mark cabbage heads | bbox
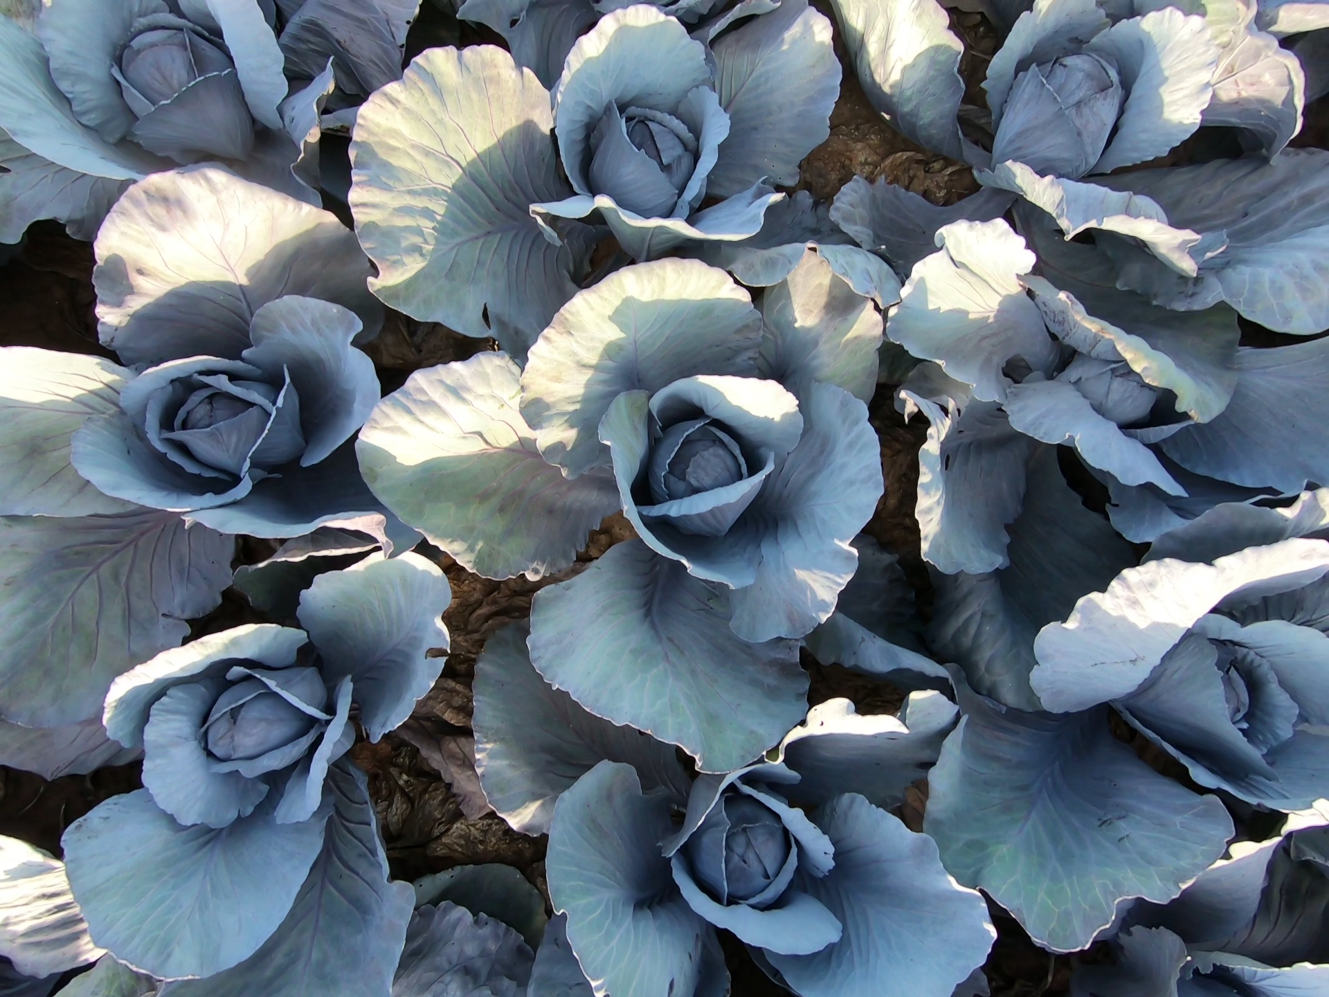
[183,384,275,471]
[694,791,797,908]
[596,115,694,218]
[1072,332,1166,422]
[653,422,748,529]
[1011,55,1124,172]
[206,676,314,761]
[1155,658,1251,728]
[116,26,236,138]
